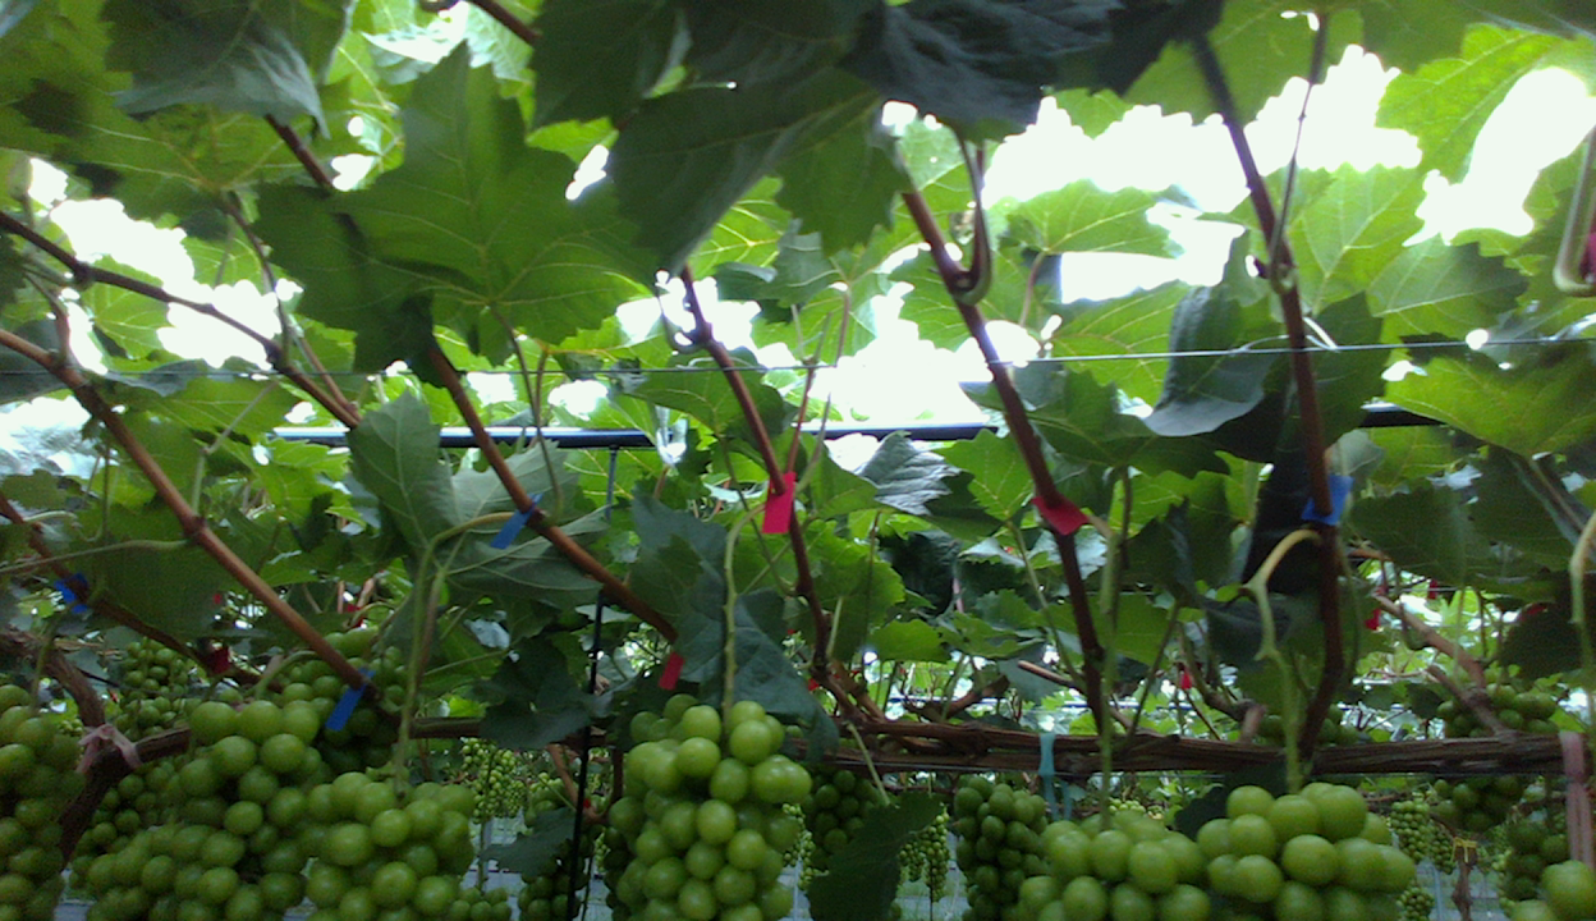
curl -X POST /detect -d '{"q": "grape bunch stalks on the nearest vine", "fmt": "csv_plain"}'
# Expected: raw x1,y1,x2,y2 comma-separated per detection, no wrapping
253,650,315,700
394,512,512,808
721,501,763,759
1084,507,1120,831
1247,531,1322,796
28,599,81,716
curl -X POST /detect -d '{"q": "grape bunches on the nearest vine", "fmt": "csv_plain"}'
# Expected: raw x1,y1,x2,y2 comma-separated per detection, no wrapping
1012,807,1211,920
301,771,476,920
1193,782,1416,920
83,698,329,920
0,686,84,920
1512,861,1595,920
607,695,811,920
266,627,408,785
